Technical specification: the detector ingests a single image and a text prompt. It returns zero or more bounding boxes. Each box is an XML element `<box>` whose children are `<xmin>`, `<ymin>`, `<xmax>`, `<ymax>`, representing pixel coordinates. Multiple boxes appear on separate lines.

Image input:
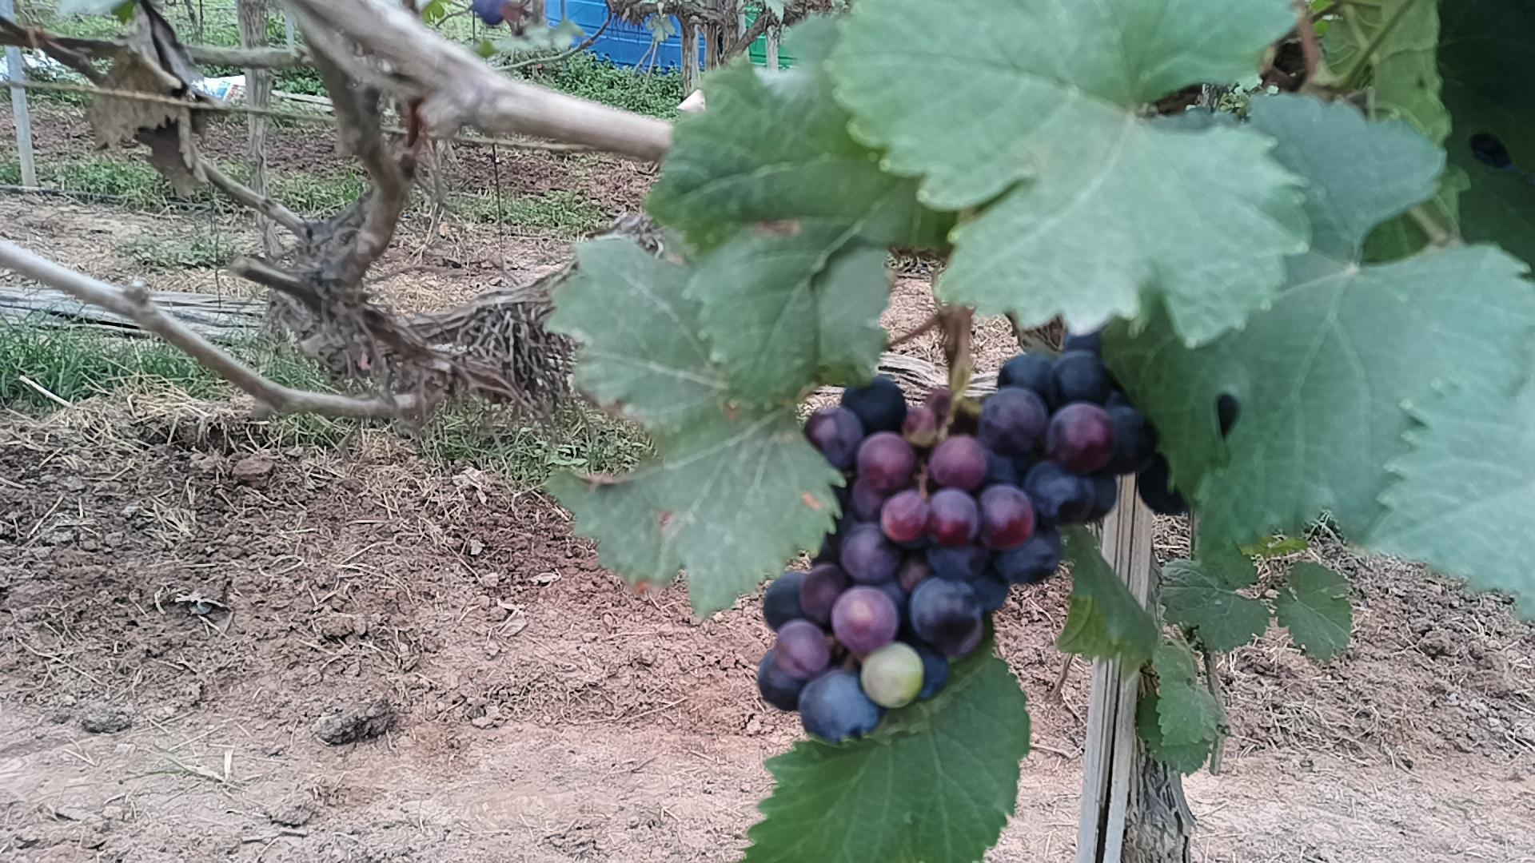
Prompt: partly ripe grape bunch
<box><xmin>758</xmin><ymin>332</ymin><xmax>1183</xmax><ymax>742</ymax></box>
